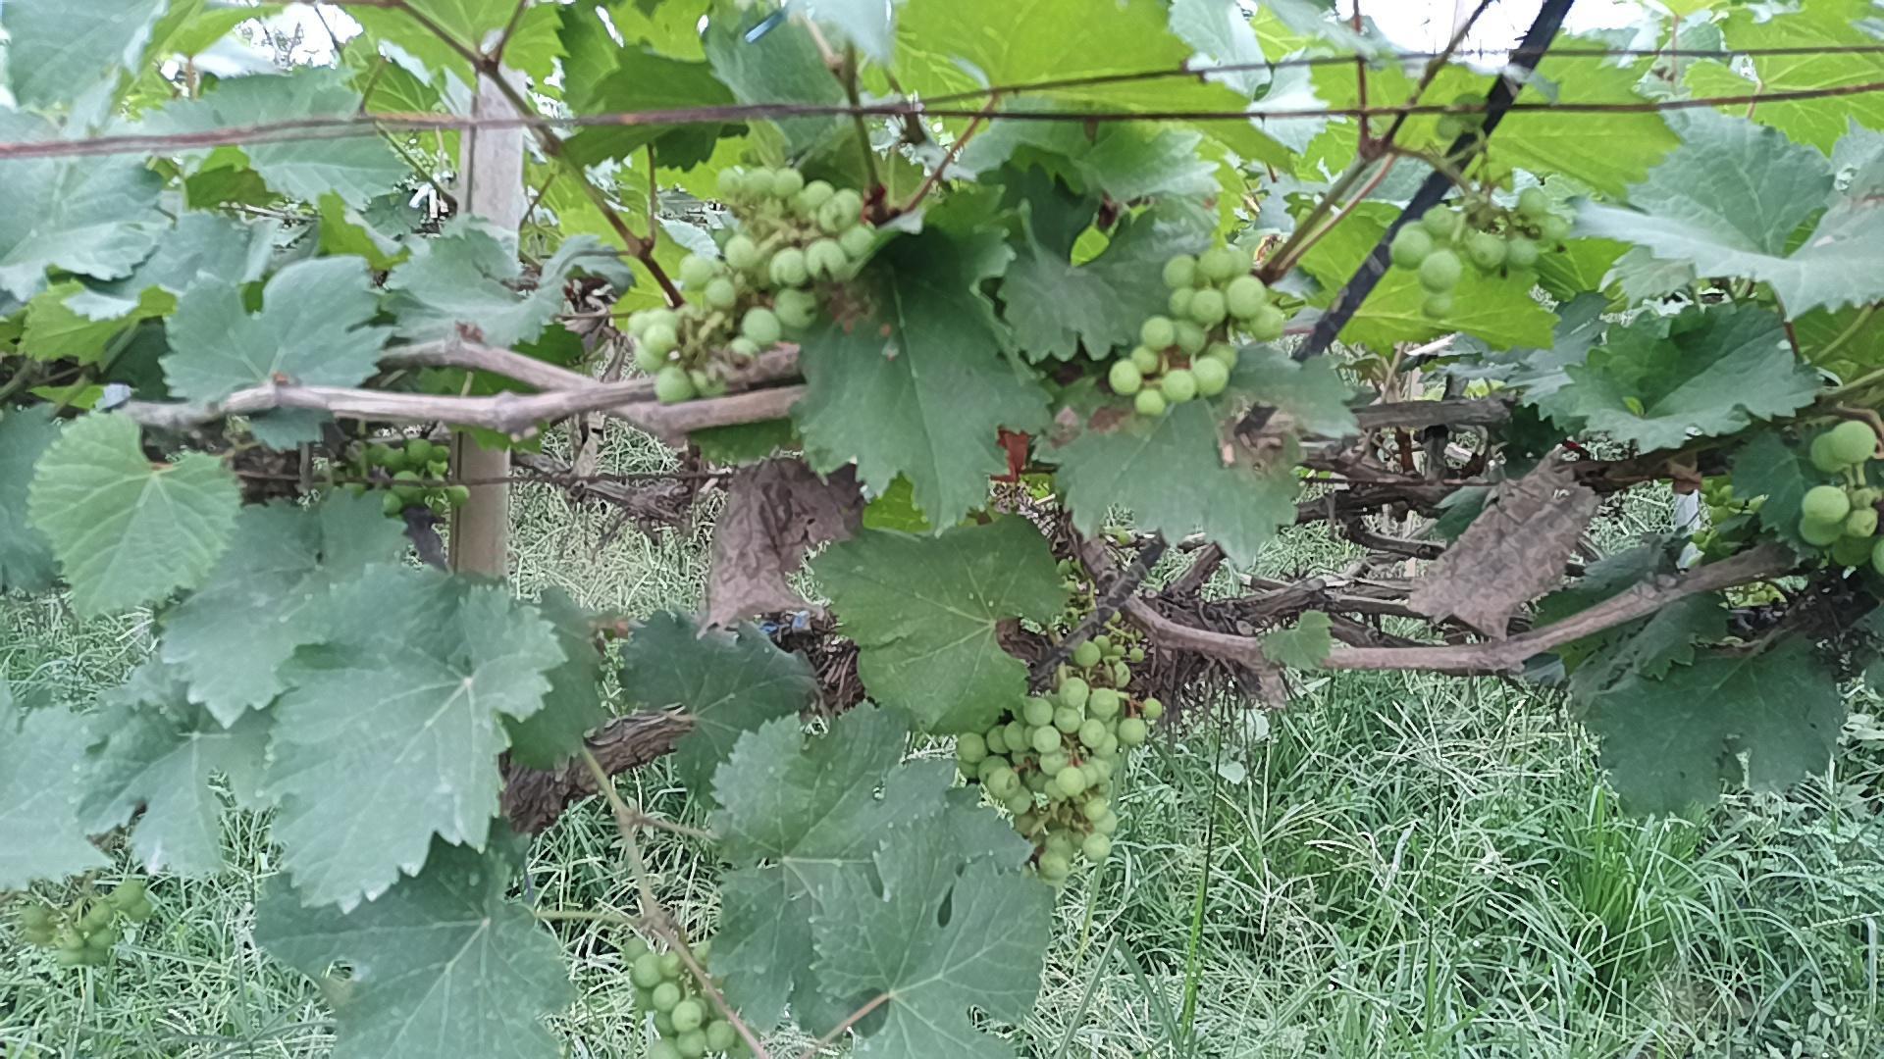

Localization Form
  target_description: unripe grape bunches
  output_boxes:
[958,637,1160,886]
[1798,421,1883,575]
[623,937,752,1058]
[15,879,153,966]
[331,437,467,519]
[628,166,891,395]
[1111,248,1282,414]
[1391,186,1574,318]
